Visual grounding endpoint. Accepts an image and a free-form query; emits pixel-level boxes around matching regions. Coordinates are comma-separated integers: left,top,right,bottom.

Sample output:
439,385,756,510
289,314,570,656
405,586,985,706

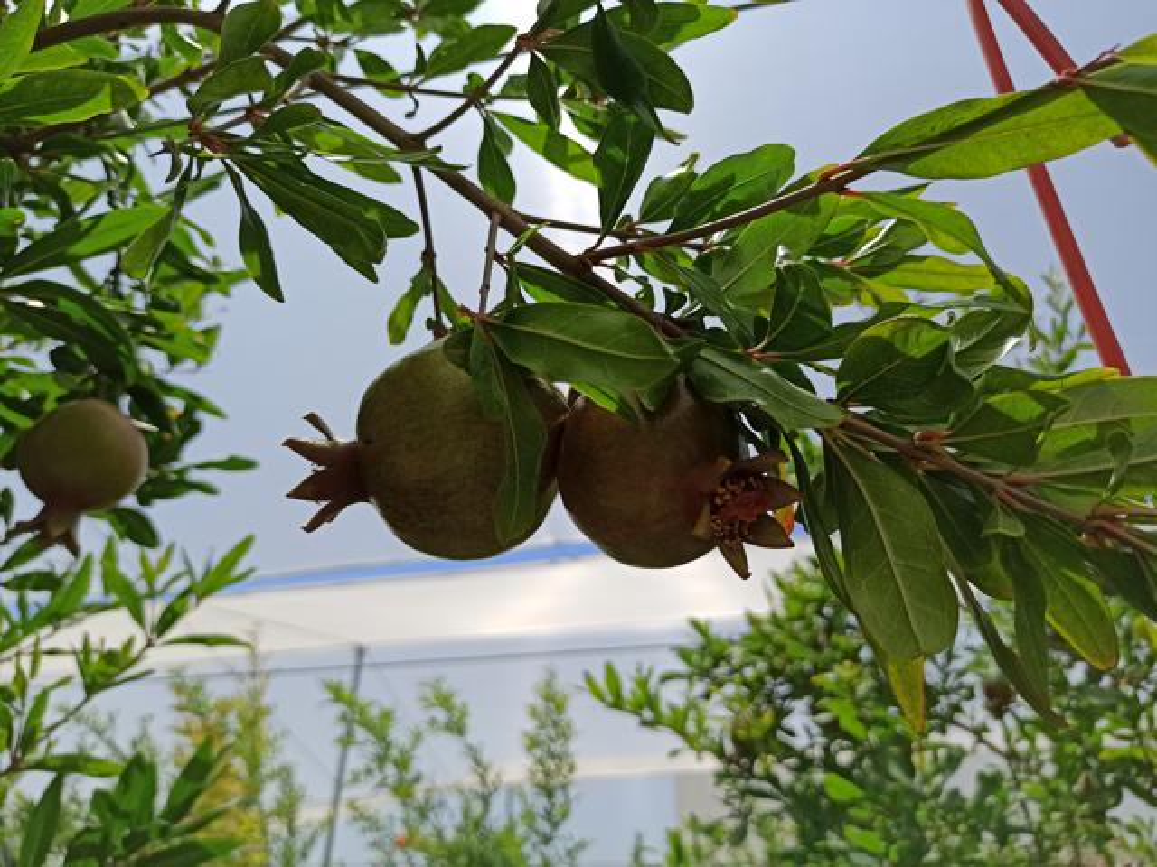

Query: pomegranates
280,336,569,560
559,374,806,580
13,399,150,560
